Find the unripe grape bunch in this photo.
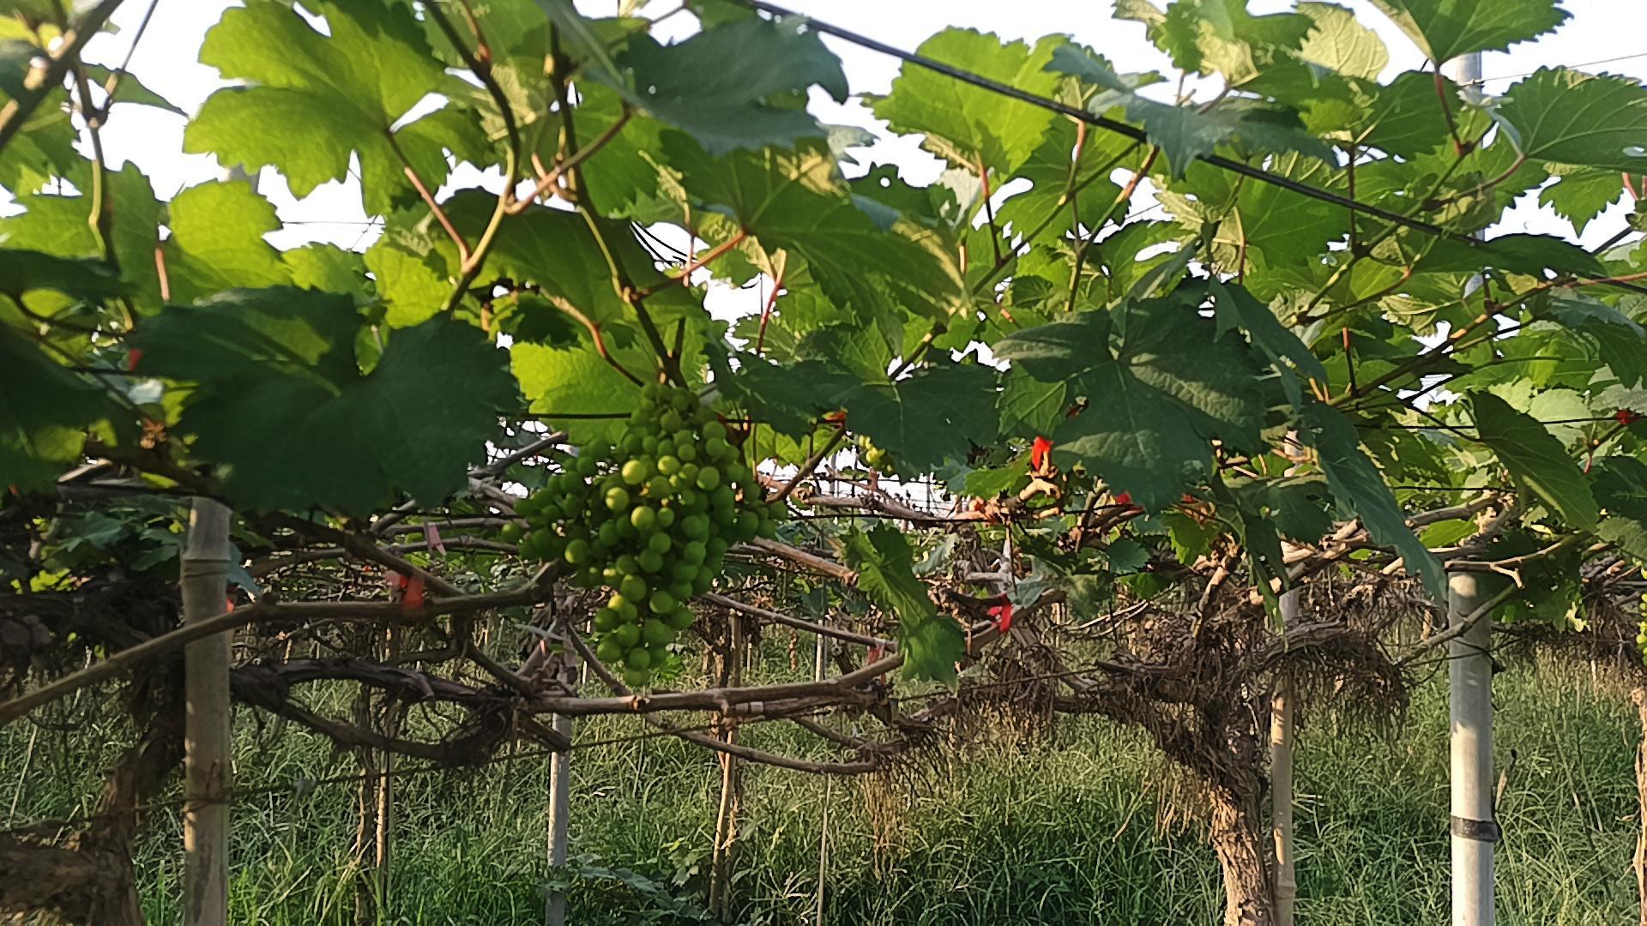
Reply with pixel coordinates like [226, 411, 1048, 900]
[502, 387, 787, 686]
